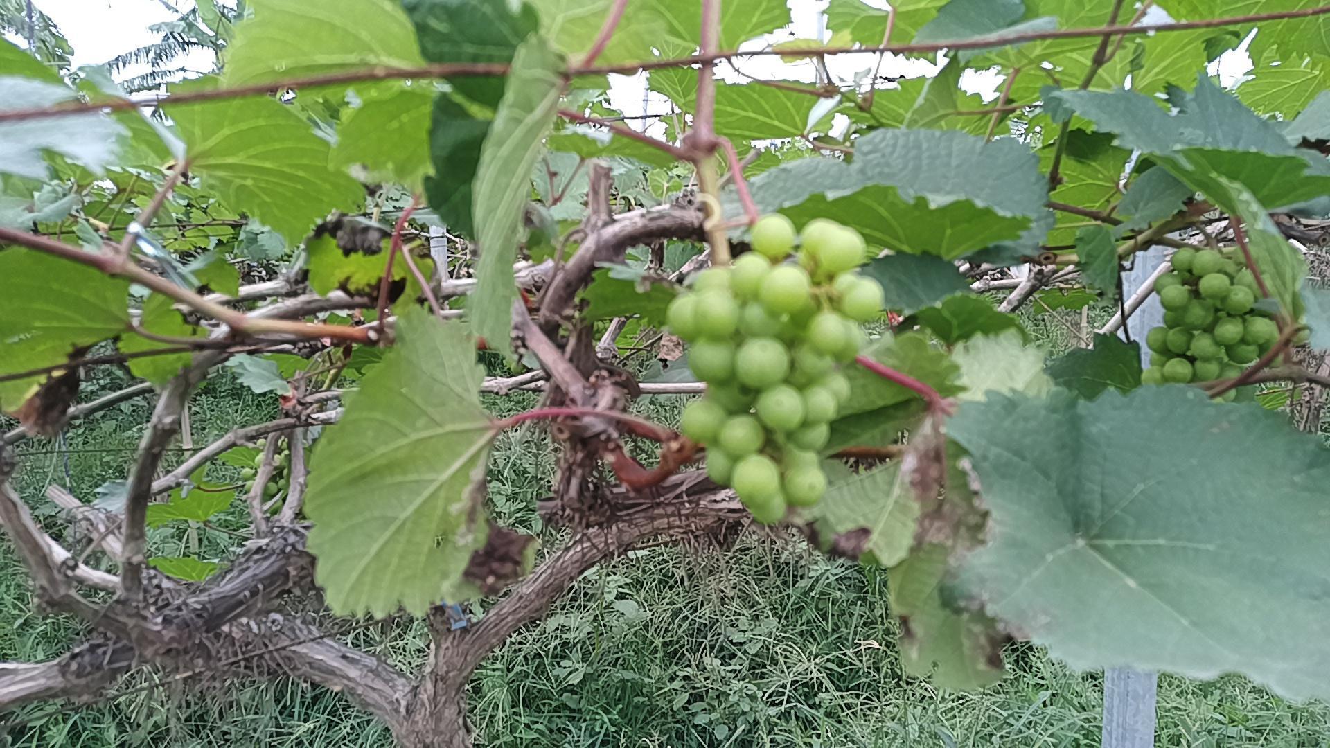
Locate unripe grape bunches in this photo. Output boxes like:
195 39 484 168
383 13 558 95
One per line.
1143 248 1310 403
667 215 883 522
